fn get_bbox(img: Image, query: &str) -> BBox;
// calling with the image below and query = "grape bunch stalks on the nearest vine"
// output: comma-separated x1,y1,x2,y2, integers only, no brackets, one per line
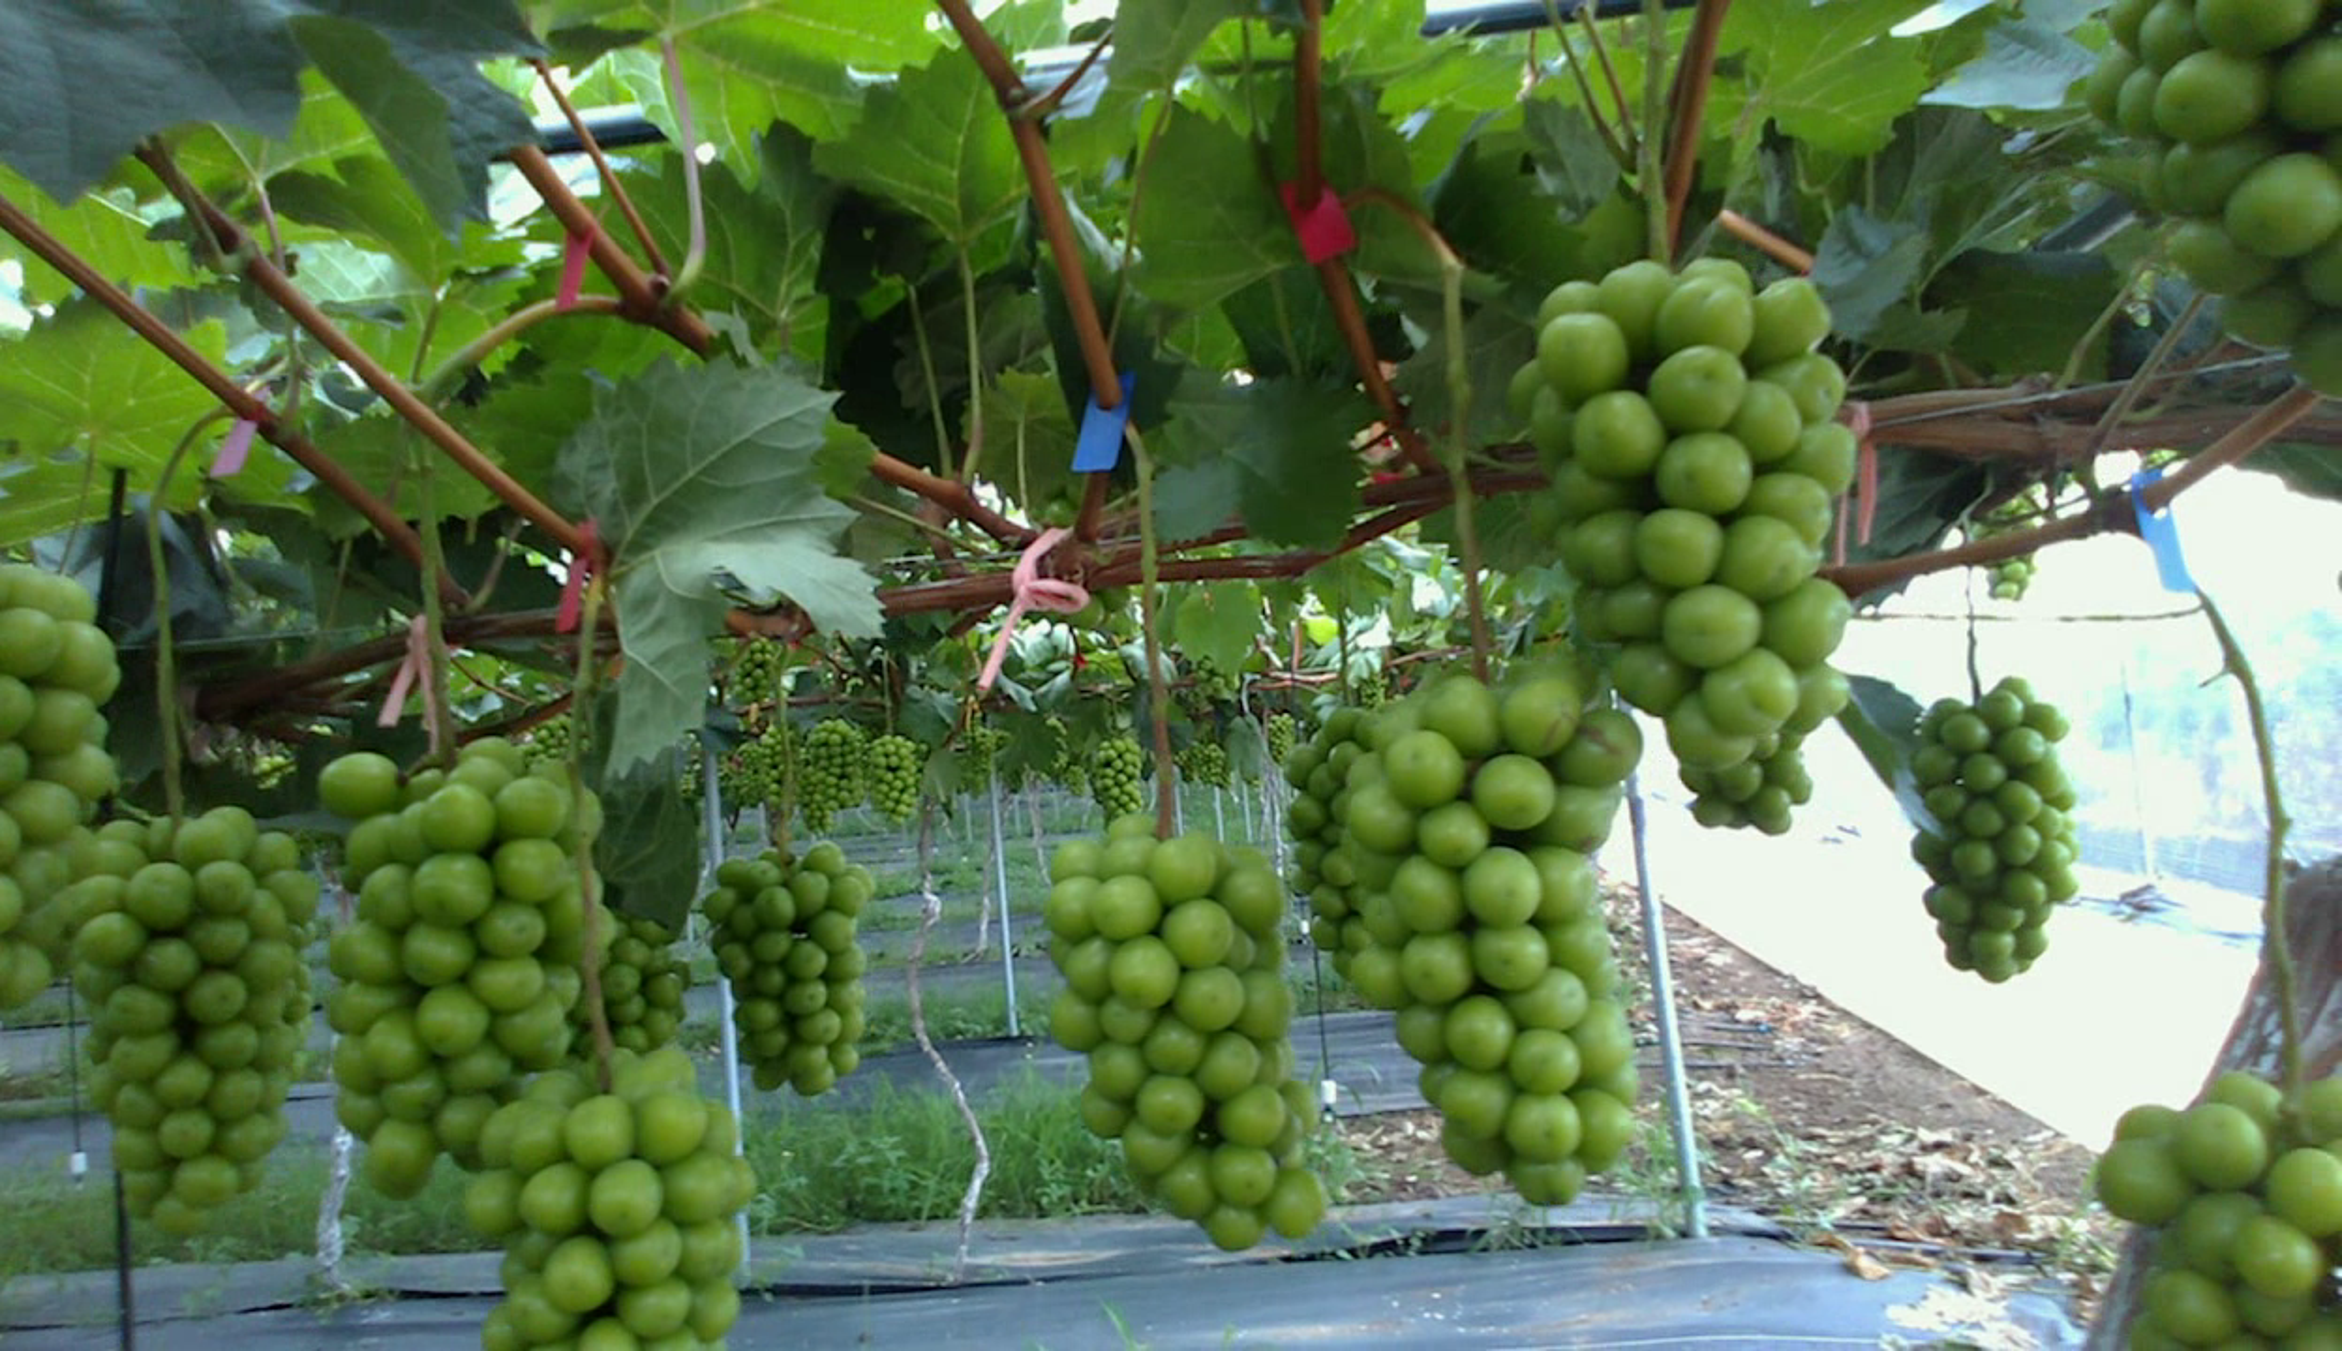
2196,589,2310,1145
565,580,614,1094
773,647,796,861
144,407,235,826
1124,422,1173,839
1638,0,1670,266
420,435,454,775
1346,186,1488,685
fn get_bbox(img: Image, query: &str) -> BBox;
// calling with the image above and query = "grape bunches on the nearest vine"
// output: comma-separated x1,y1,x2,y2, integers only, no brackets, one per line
702,842,874,1096
71,807,319,1246
323,734,578,1208
1342,670,1644,1208
0,565,122,1008
1505,257,1856,769
2091,1068,2340,1349
2087,2,2340,405
464,1043,753,1349
1045,814,1329,1252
